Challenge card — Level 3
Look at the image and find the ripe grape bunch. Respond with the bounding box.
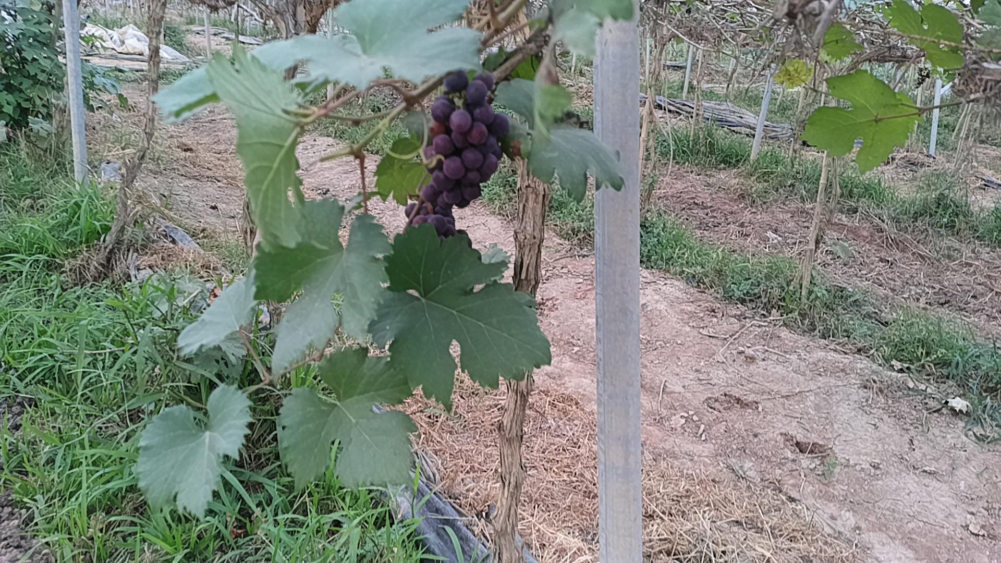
[405,70,509,239]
